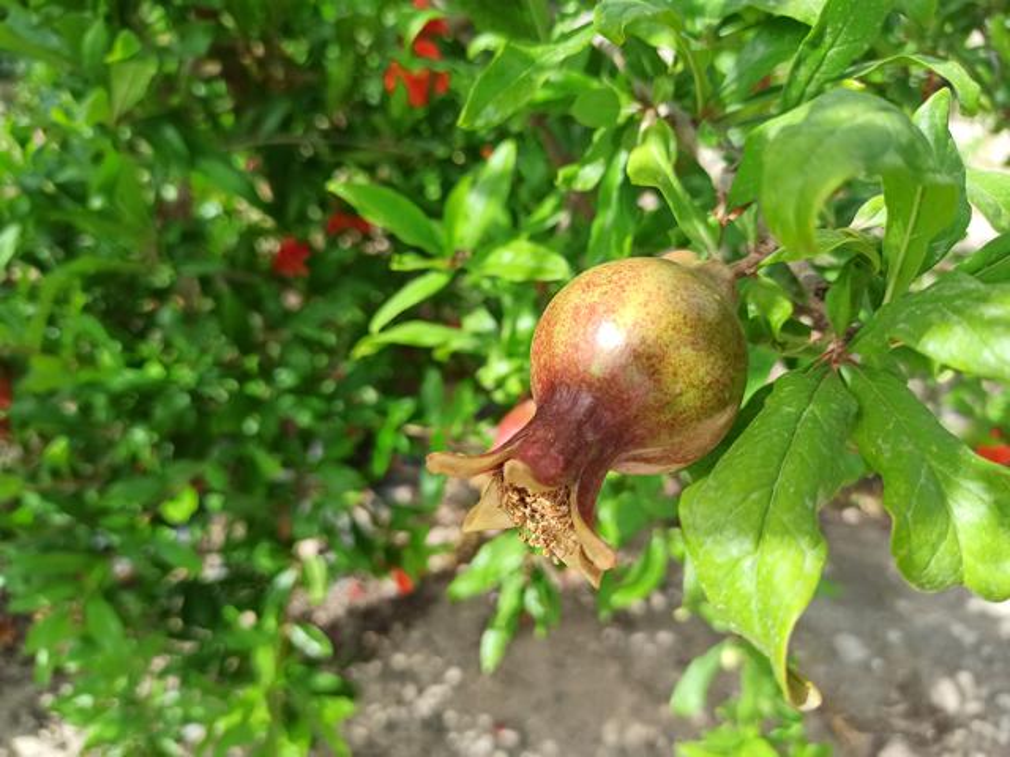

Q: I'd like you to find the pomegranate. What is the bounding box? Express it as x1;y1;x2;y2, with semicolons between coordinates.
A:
421;246;750;587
